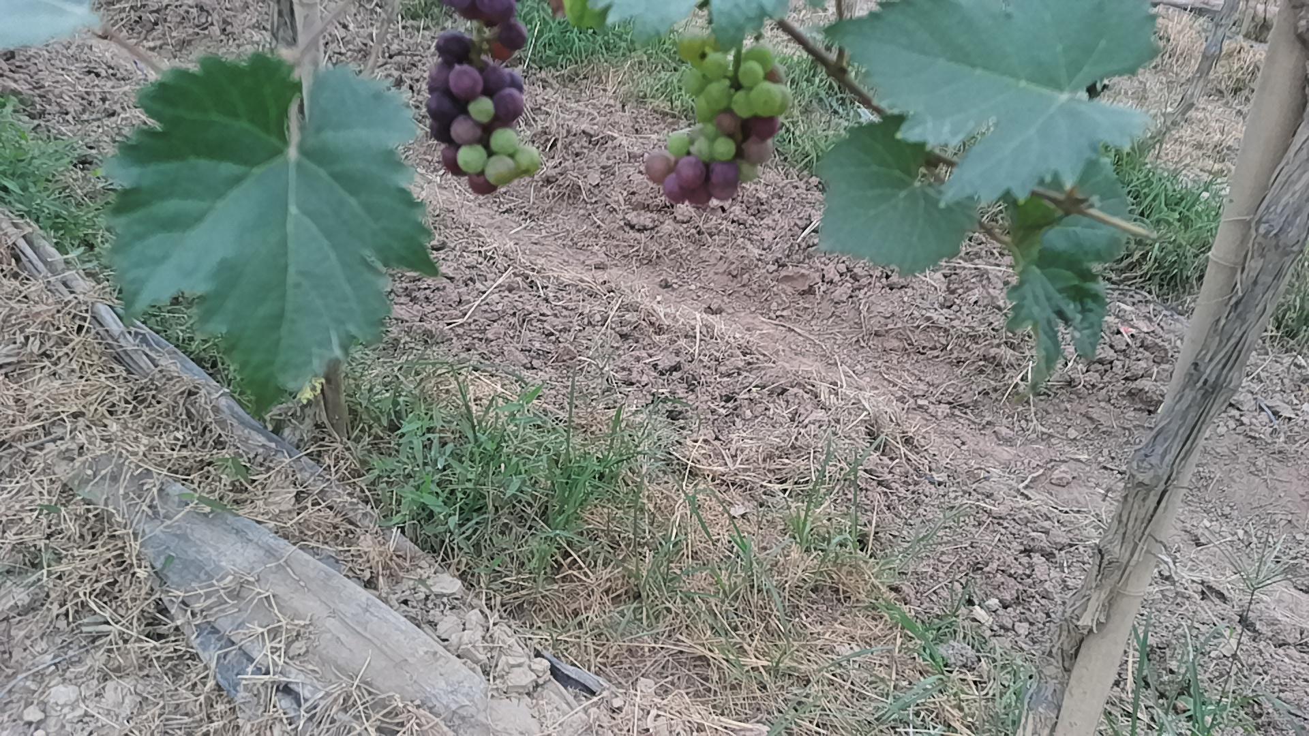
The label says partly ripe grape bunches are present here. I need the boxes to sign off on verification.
[425,0,541,194]
[645,35,791,205]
